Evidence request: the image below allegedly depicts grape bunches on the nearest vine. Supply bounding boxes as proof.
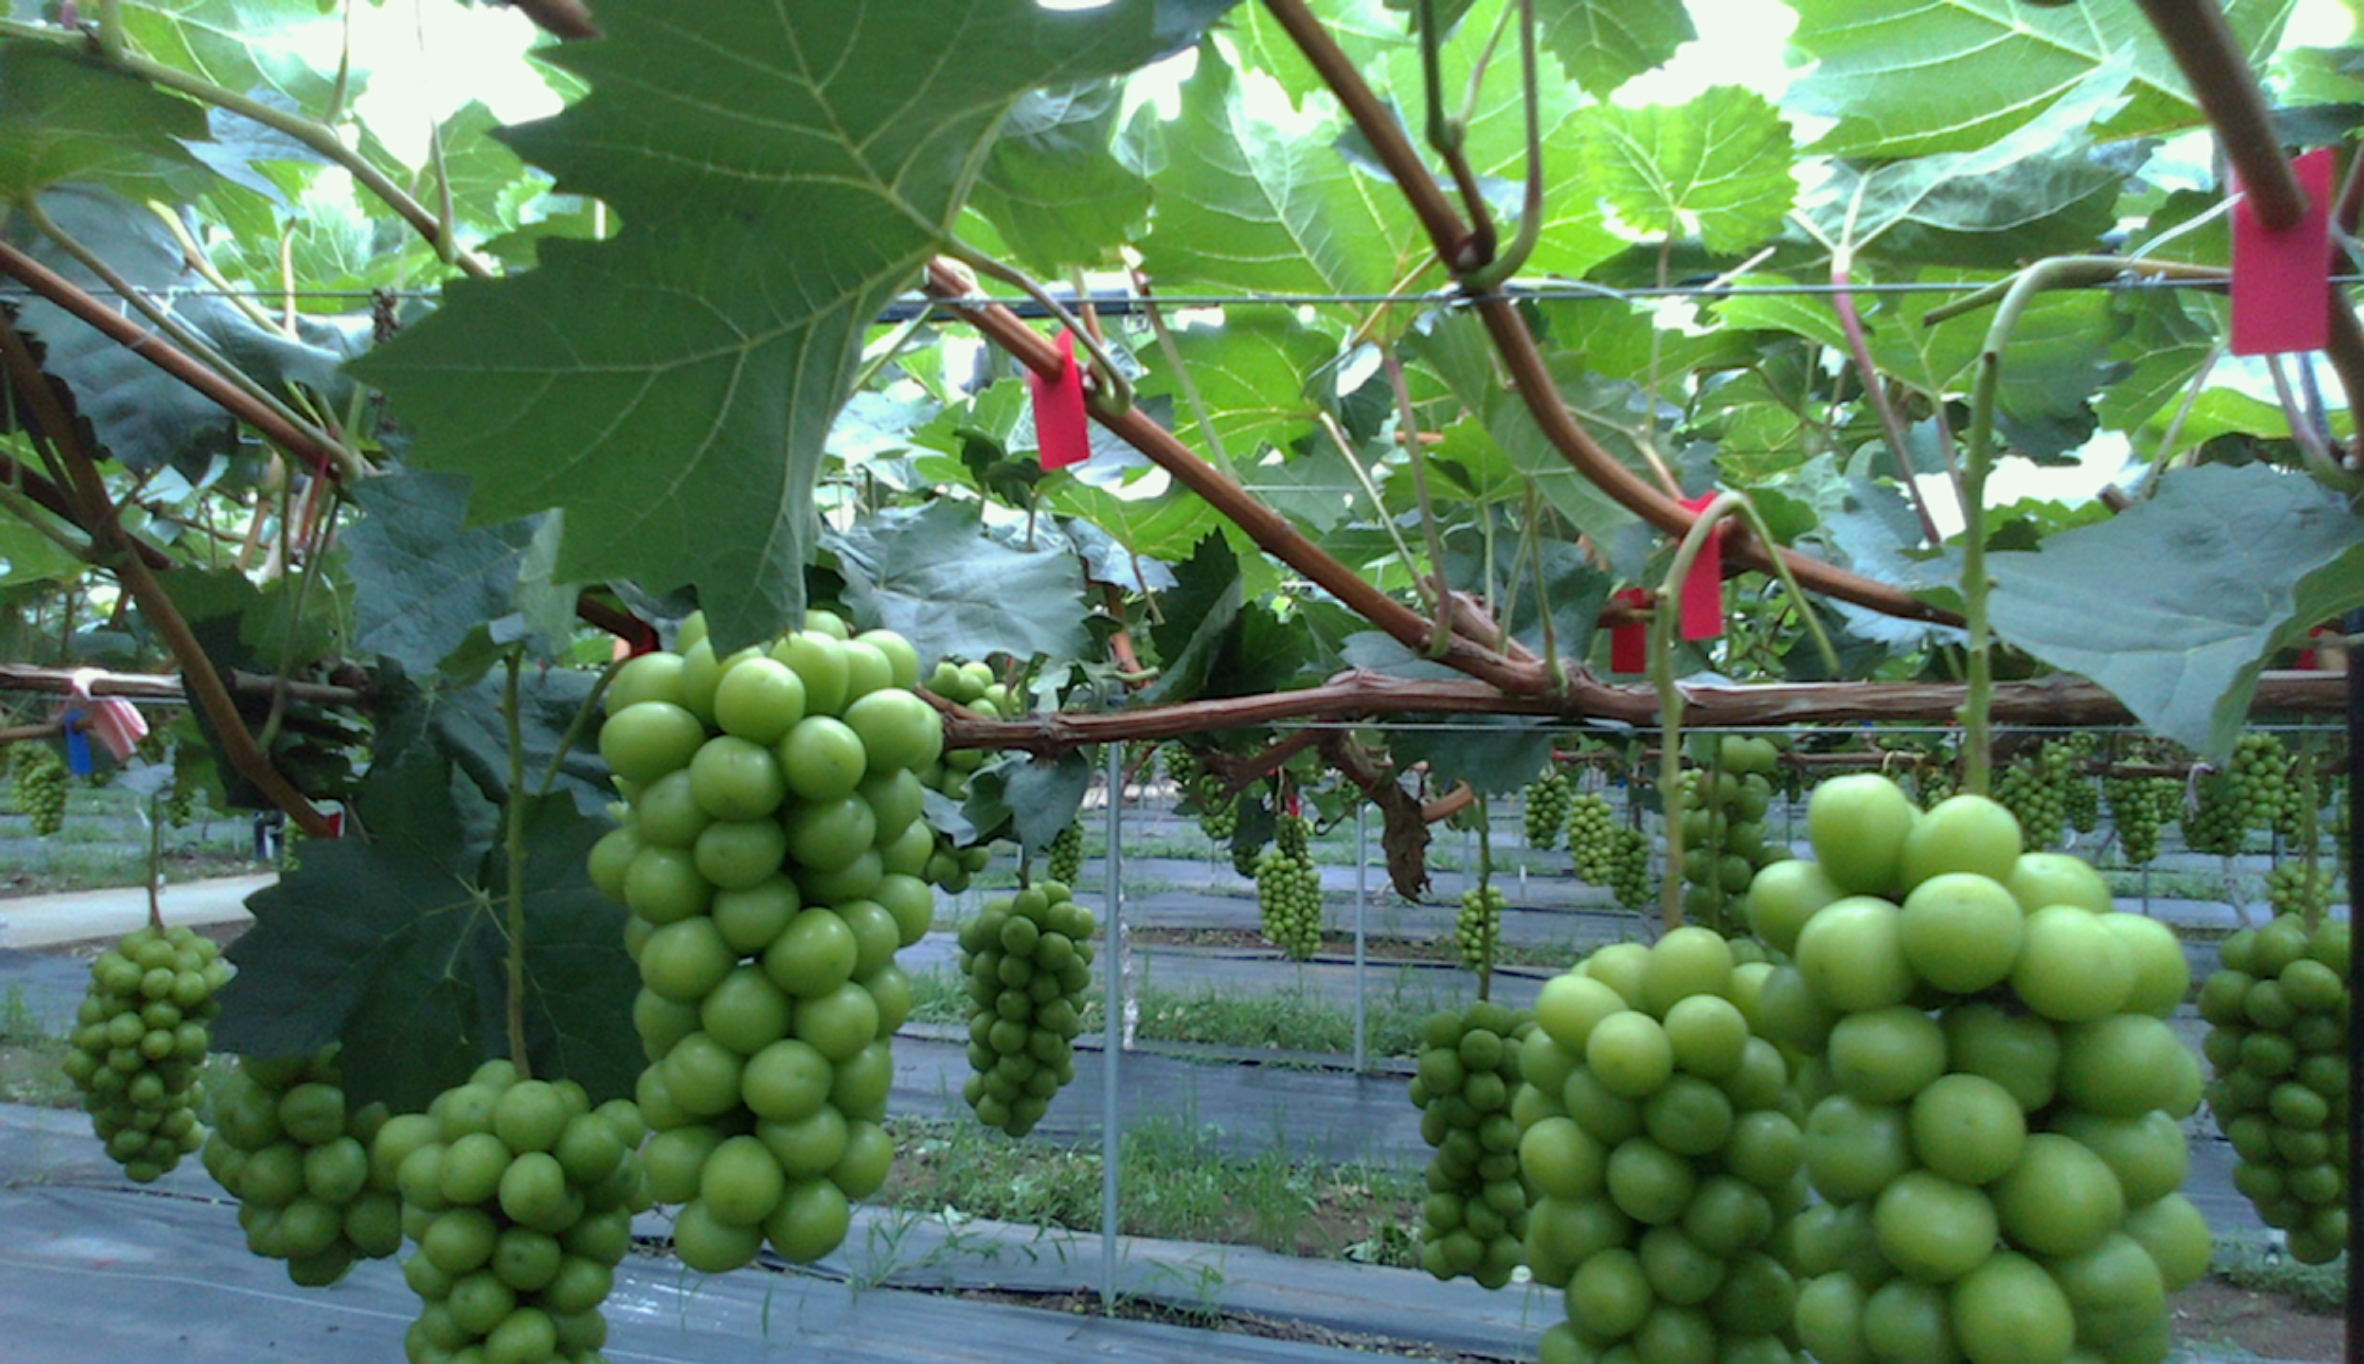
[587,610,945,1275]
[373,1059,652,1362]
[1513,928,1811,1362]
[1745,771,2214,1362]
[203,1042,402,1286]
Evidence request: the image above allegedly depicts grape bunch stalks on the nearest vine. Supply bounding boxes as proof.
[506,642,532,1080]
[1966,256,2230,799]
[1650,491,1758,934]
